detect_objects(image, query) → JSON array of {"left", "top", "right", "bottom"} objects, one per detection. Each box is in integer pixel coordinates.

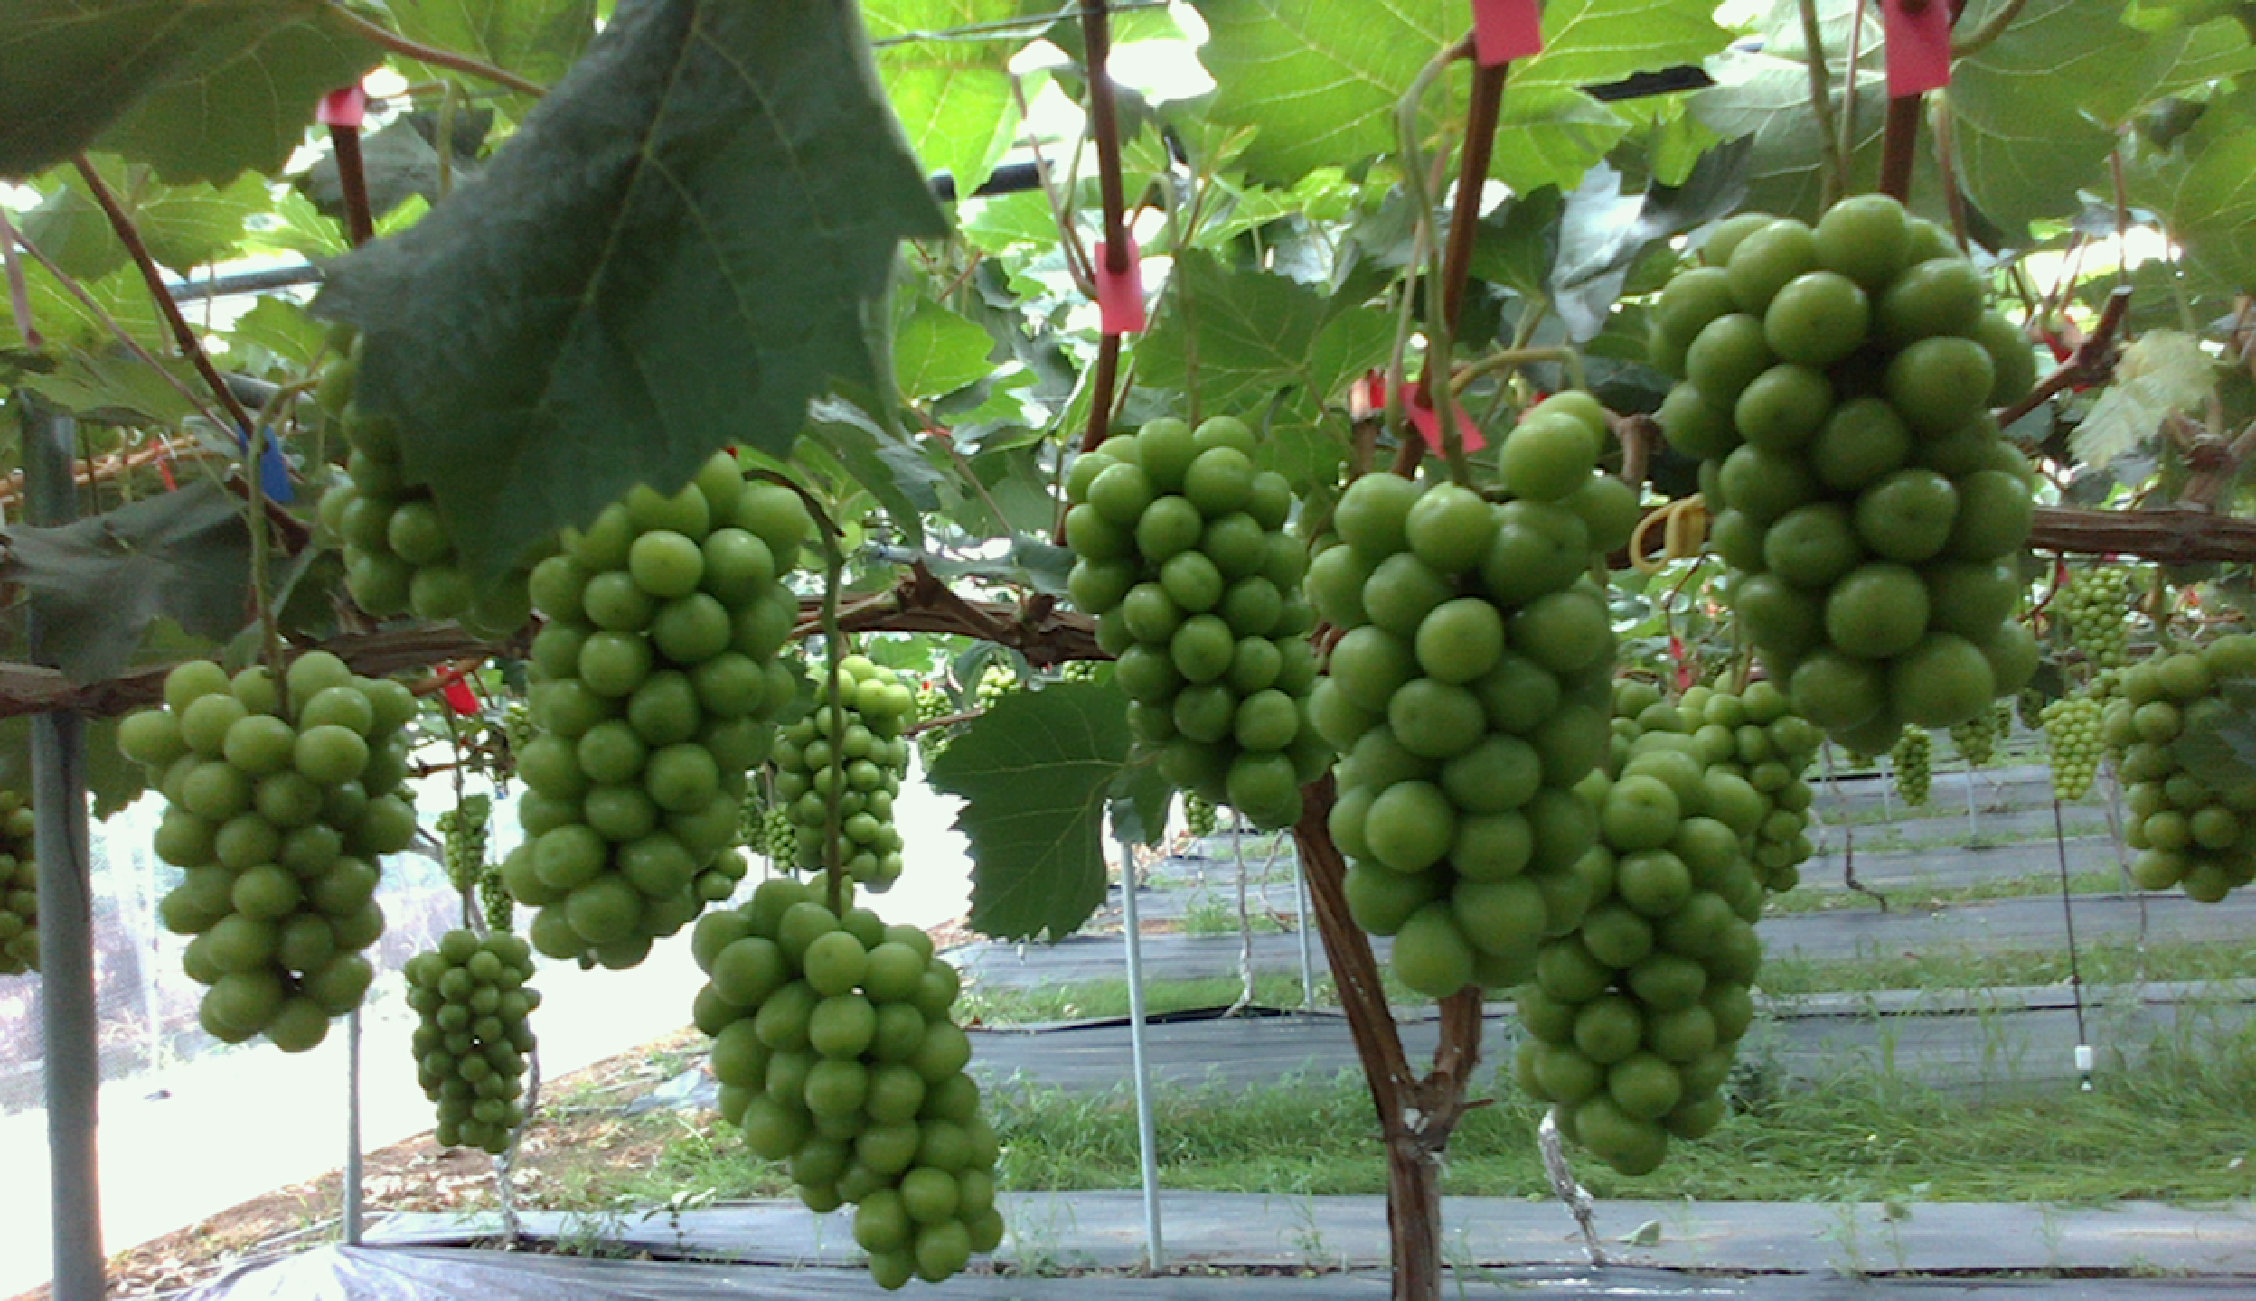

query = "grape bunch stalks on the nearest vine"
[
  {"left": 1399, "top": 33, "right": 1473, "bottom": 486},
  {"left": 817, "top": 519, "right": 841, "bottom": 913},
  {"left": 248, "top": 378, "right": 318, "bottom": 723},
  {"left": 1800, "top": 0, "right": 1844, "bottom": 220},
  {"left": 1121, "top": 173, "right": 1200, "bottom": 434}
]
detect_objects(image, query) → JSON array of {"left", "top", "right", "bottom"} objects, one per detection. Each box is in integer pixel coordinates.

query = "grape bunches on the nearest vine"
[
  {"left": 1517, "top": 752, "right": 1762, "bottom": 1176},
  {"left": 1065, "top": 416, "right": 1336, "bottom": 831},
  {"left": 1652, "top": 195, "right": 2043, "bottom": 753},
  {"left": 117, "top": 649, "right": 418, "bottom": 1052},
  {"left": 692, "top": 871, "right": 1007, "bottom": 1292},
  {"left": 1305, "top": 392, "right": 1640, "bottom": 999},
  {"left": 504, "top": 450, "right": 810, "bottom": 969}
]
